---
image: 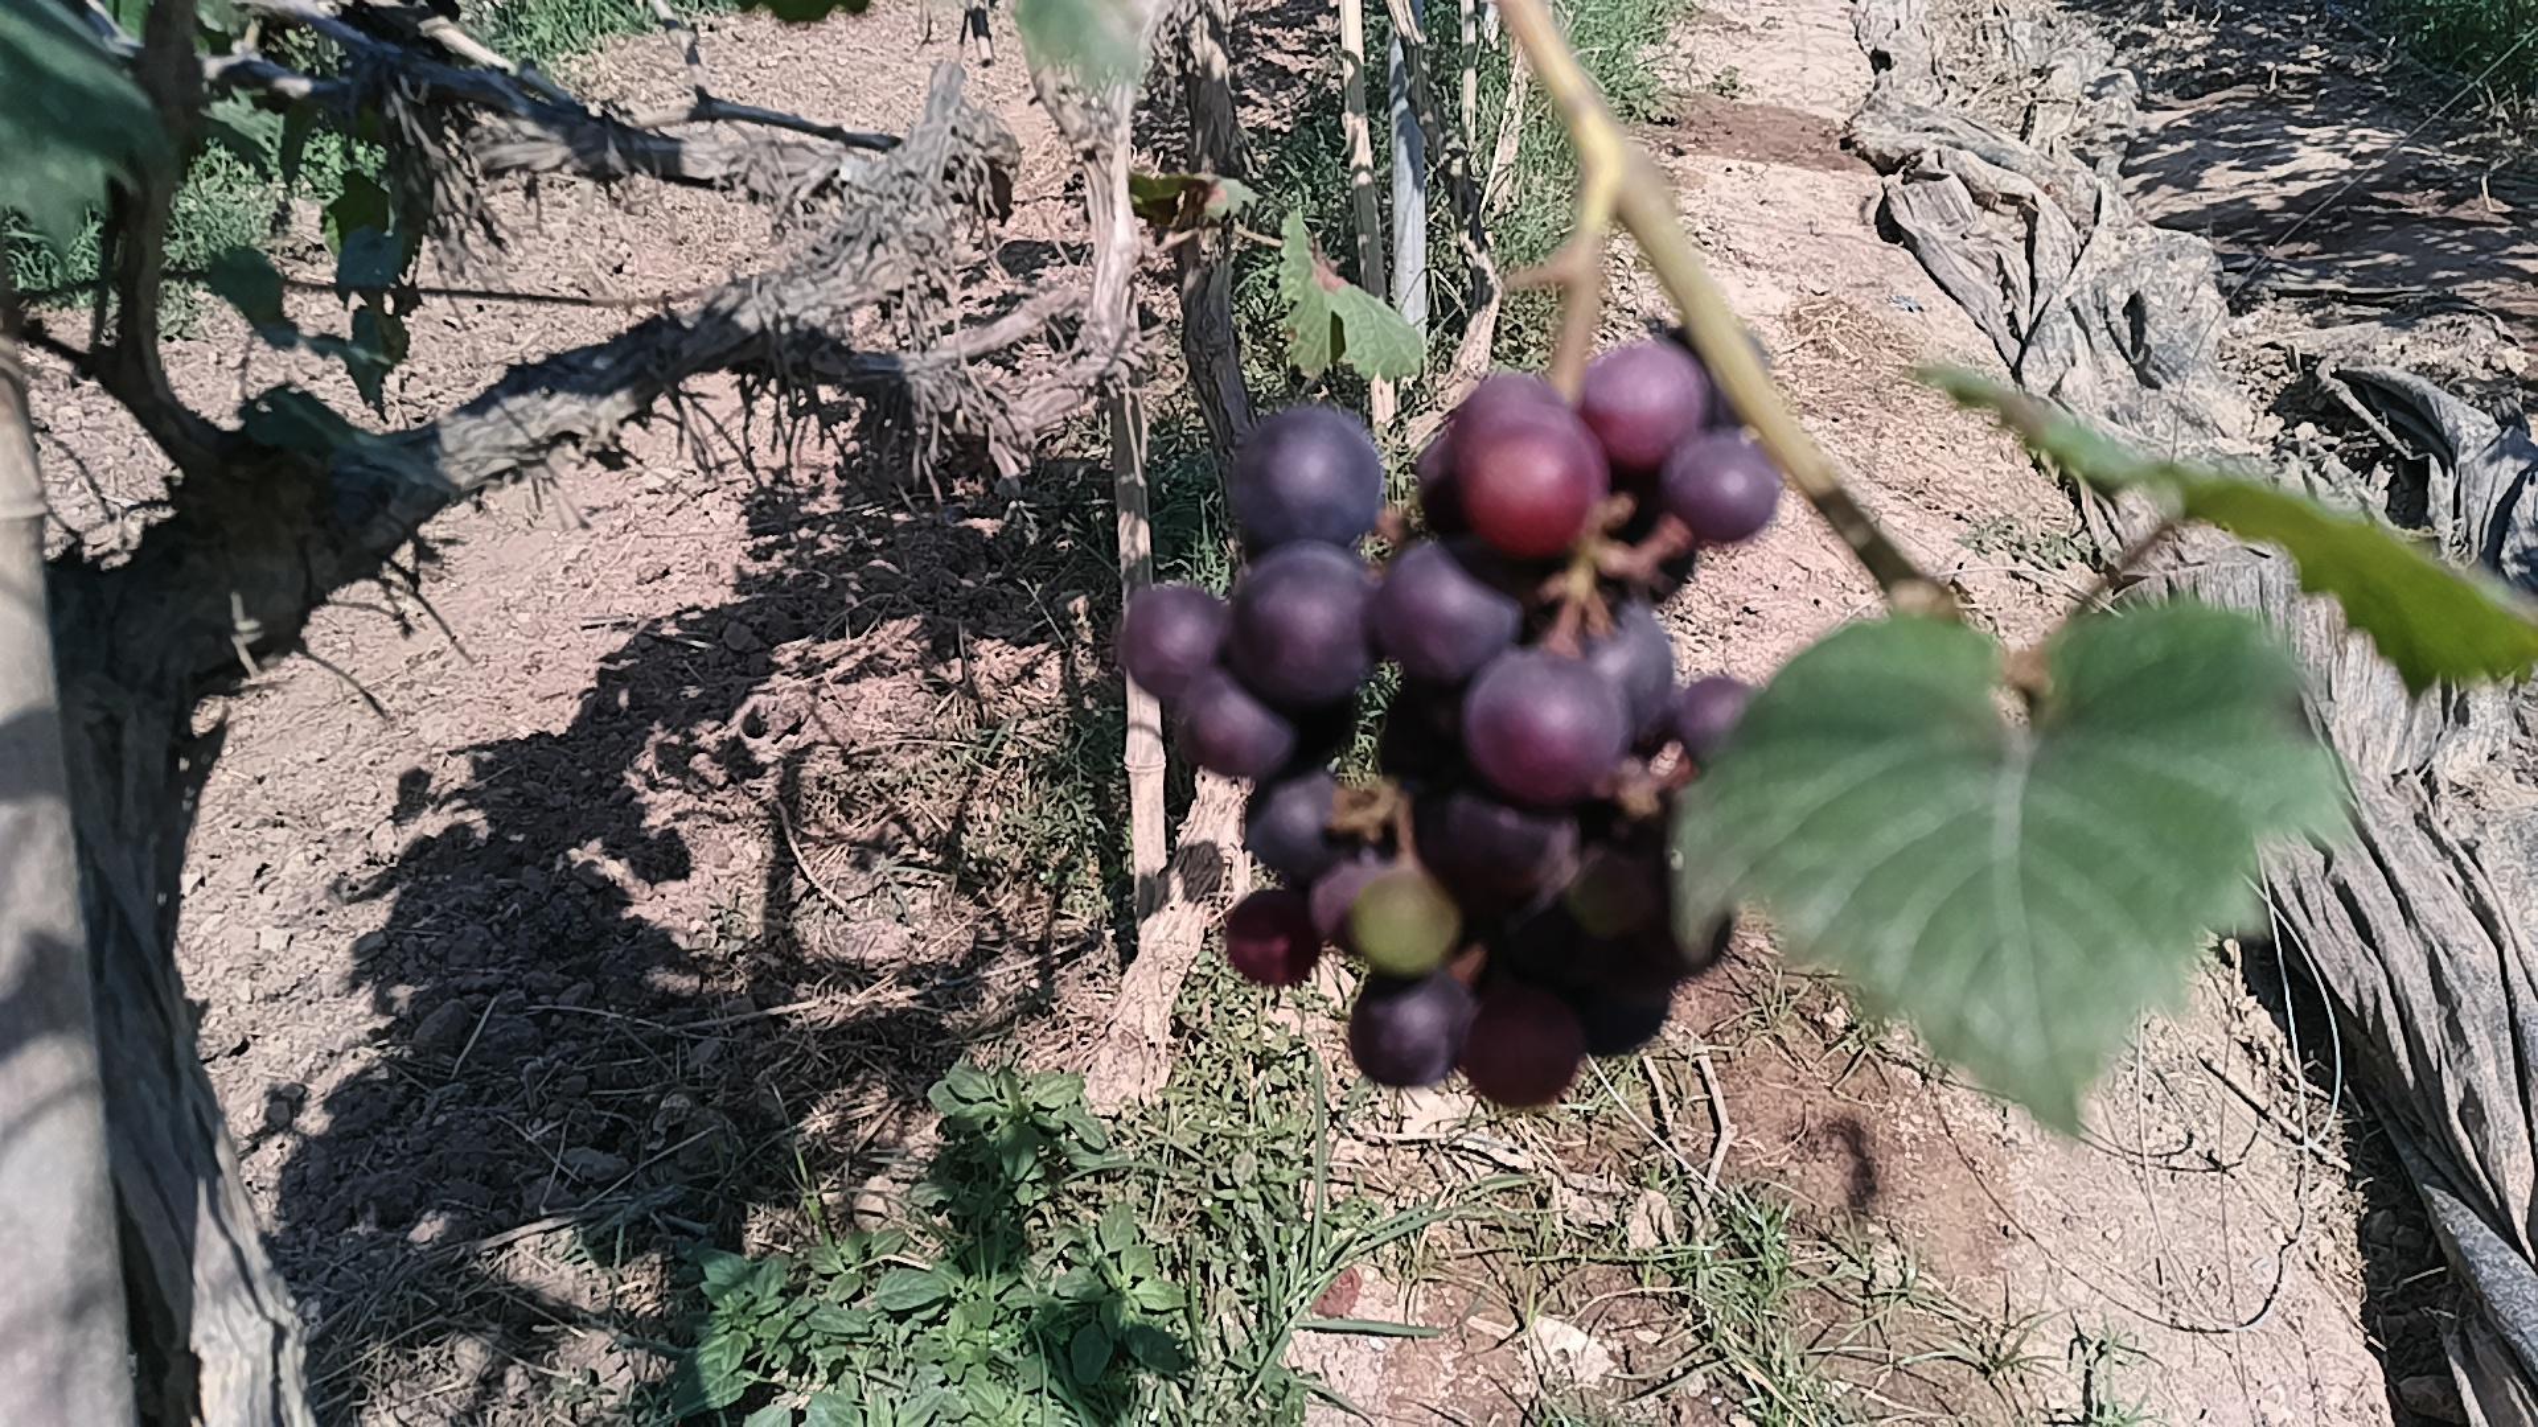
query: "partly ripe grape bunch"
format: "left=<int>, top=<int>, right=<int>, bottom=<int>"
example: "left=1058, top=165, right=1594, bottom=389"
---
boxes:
left=1129, top=329, right=1779, bottom=1106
